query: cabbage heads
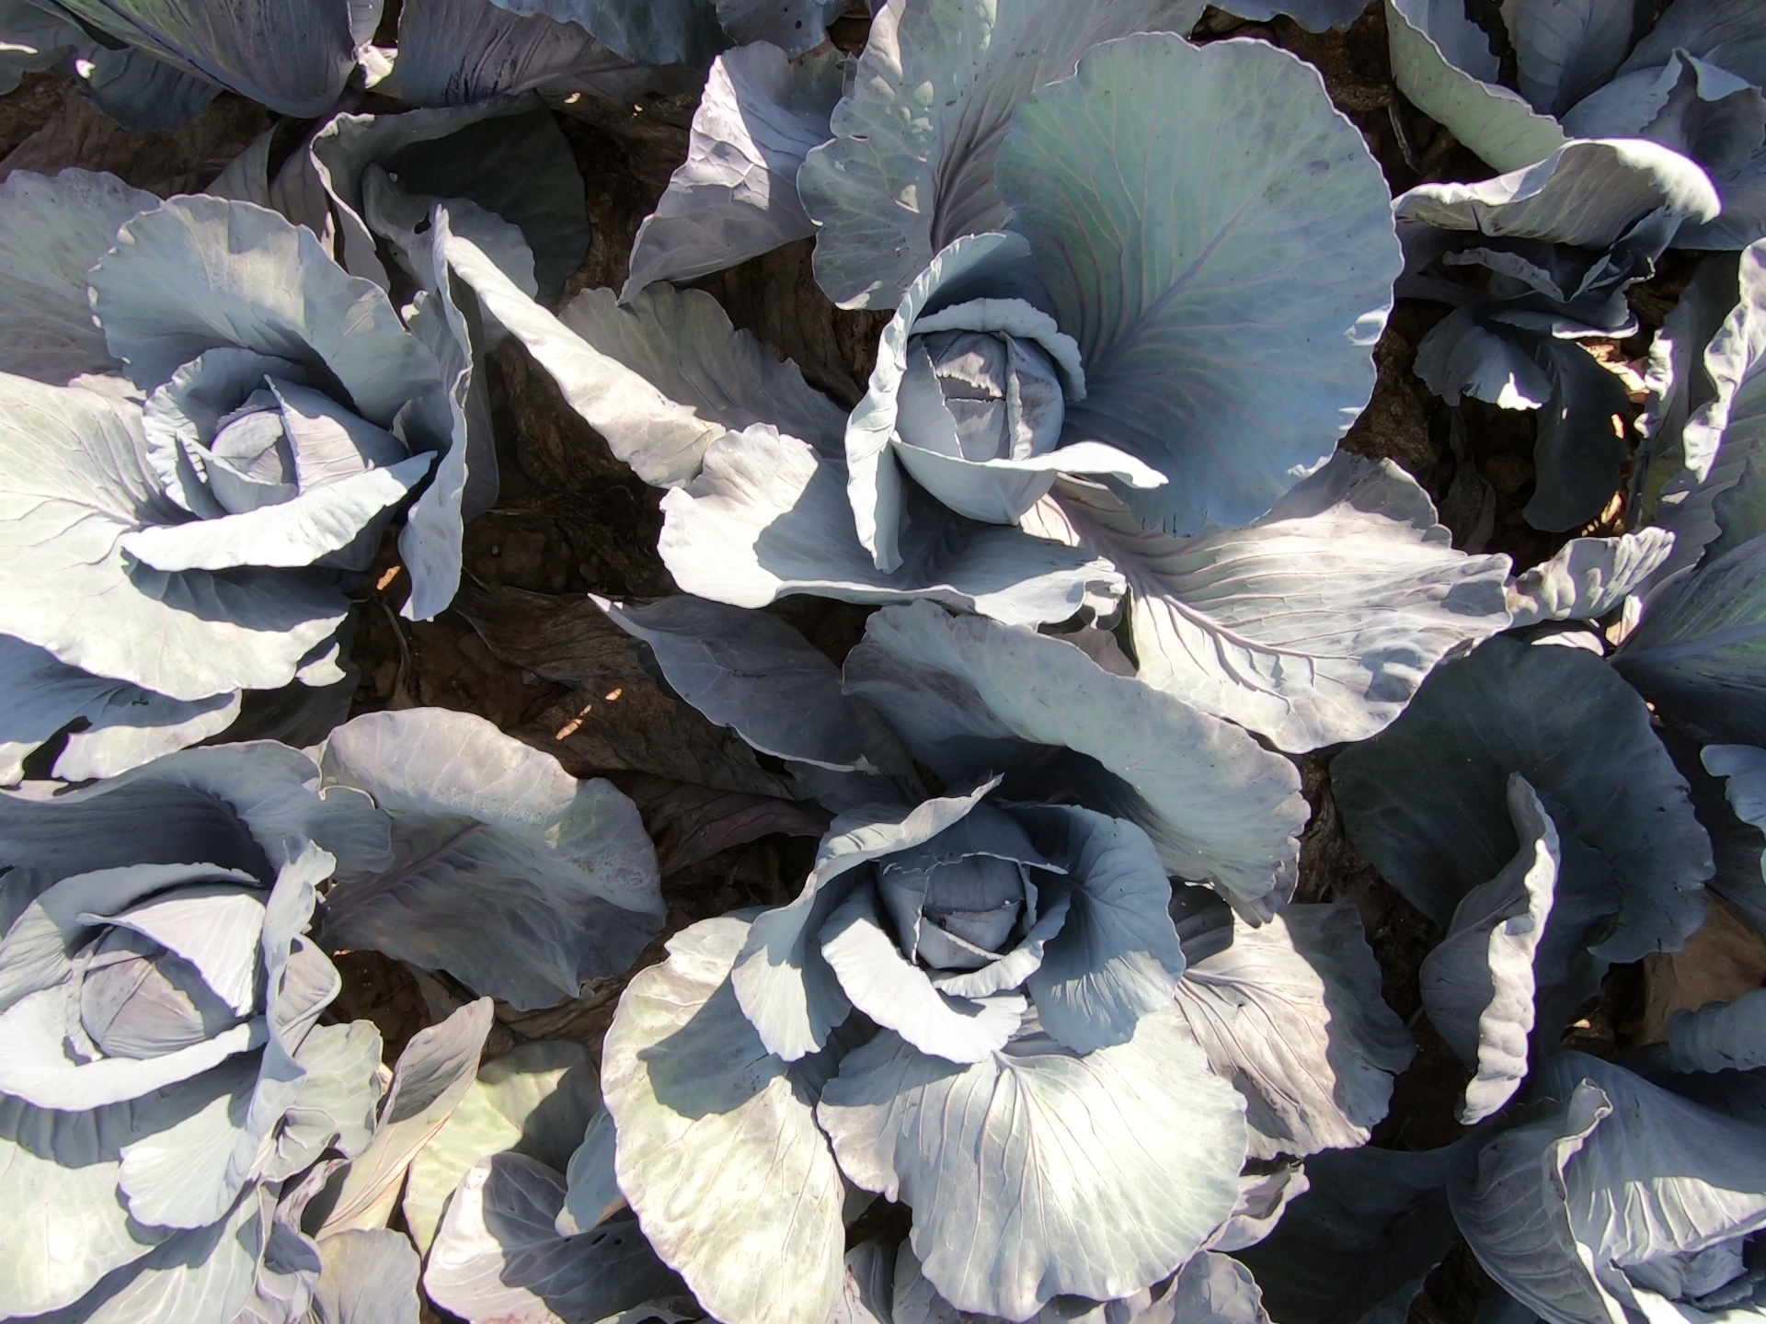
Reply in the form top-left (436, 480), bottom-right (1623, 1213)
top-left (910, 815), bottom-right (1027, 962)
top-left (889, 312), bottom-right (1063, 514)
top-left (72, 885), bottom-right (271, 1068)
top-left (1581, 1140), bottom-right (1748, 1295)
top-left (204, 404), bottom-right (358, 524)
